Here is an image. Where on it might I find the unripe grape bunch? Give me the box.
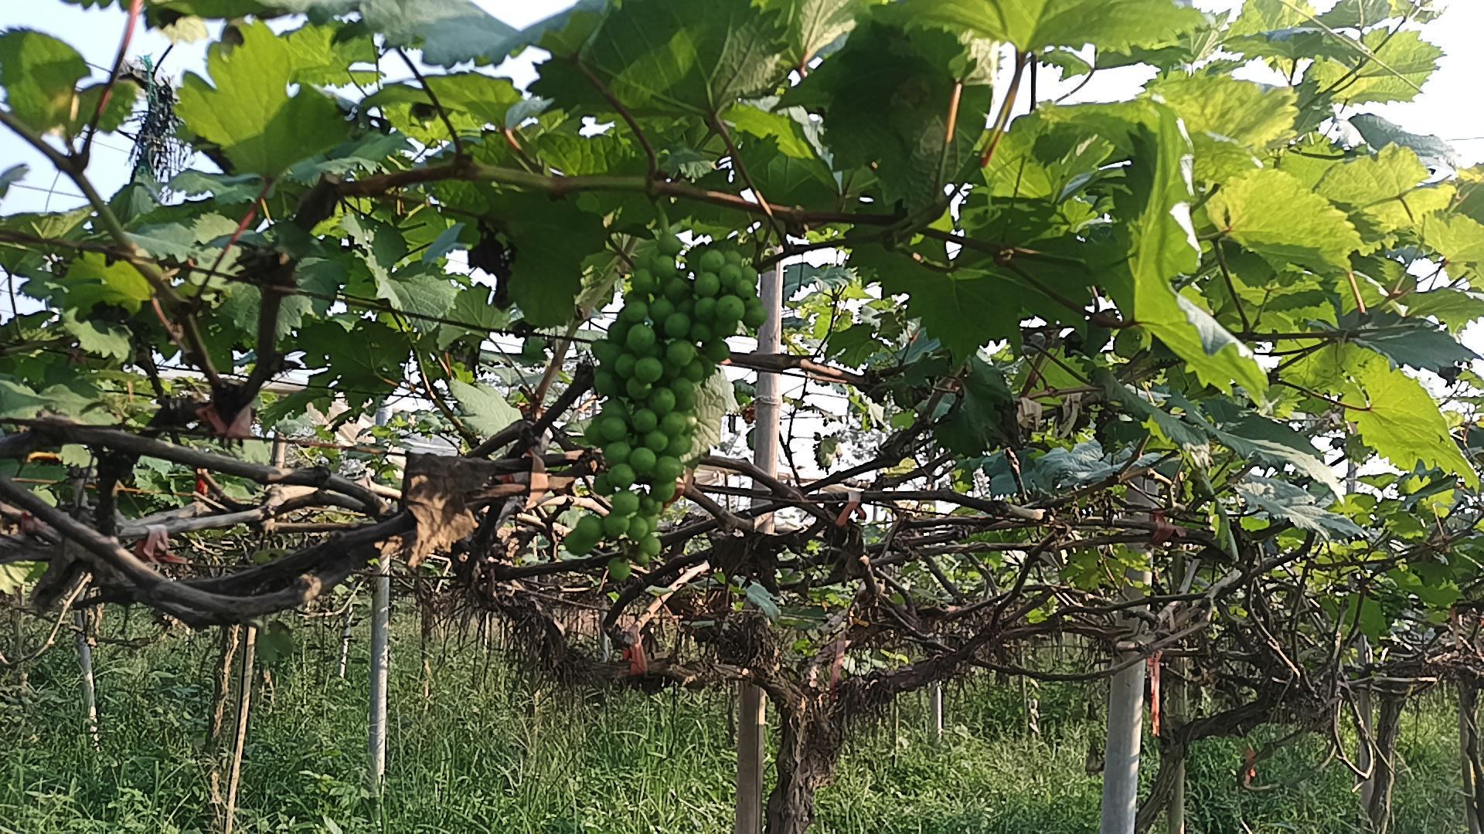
[563,232,768,581]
